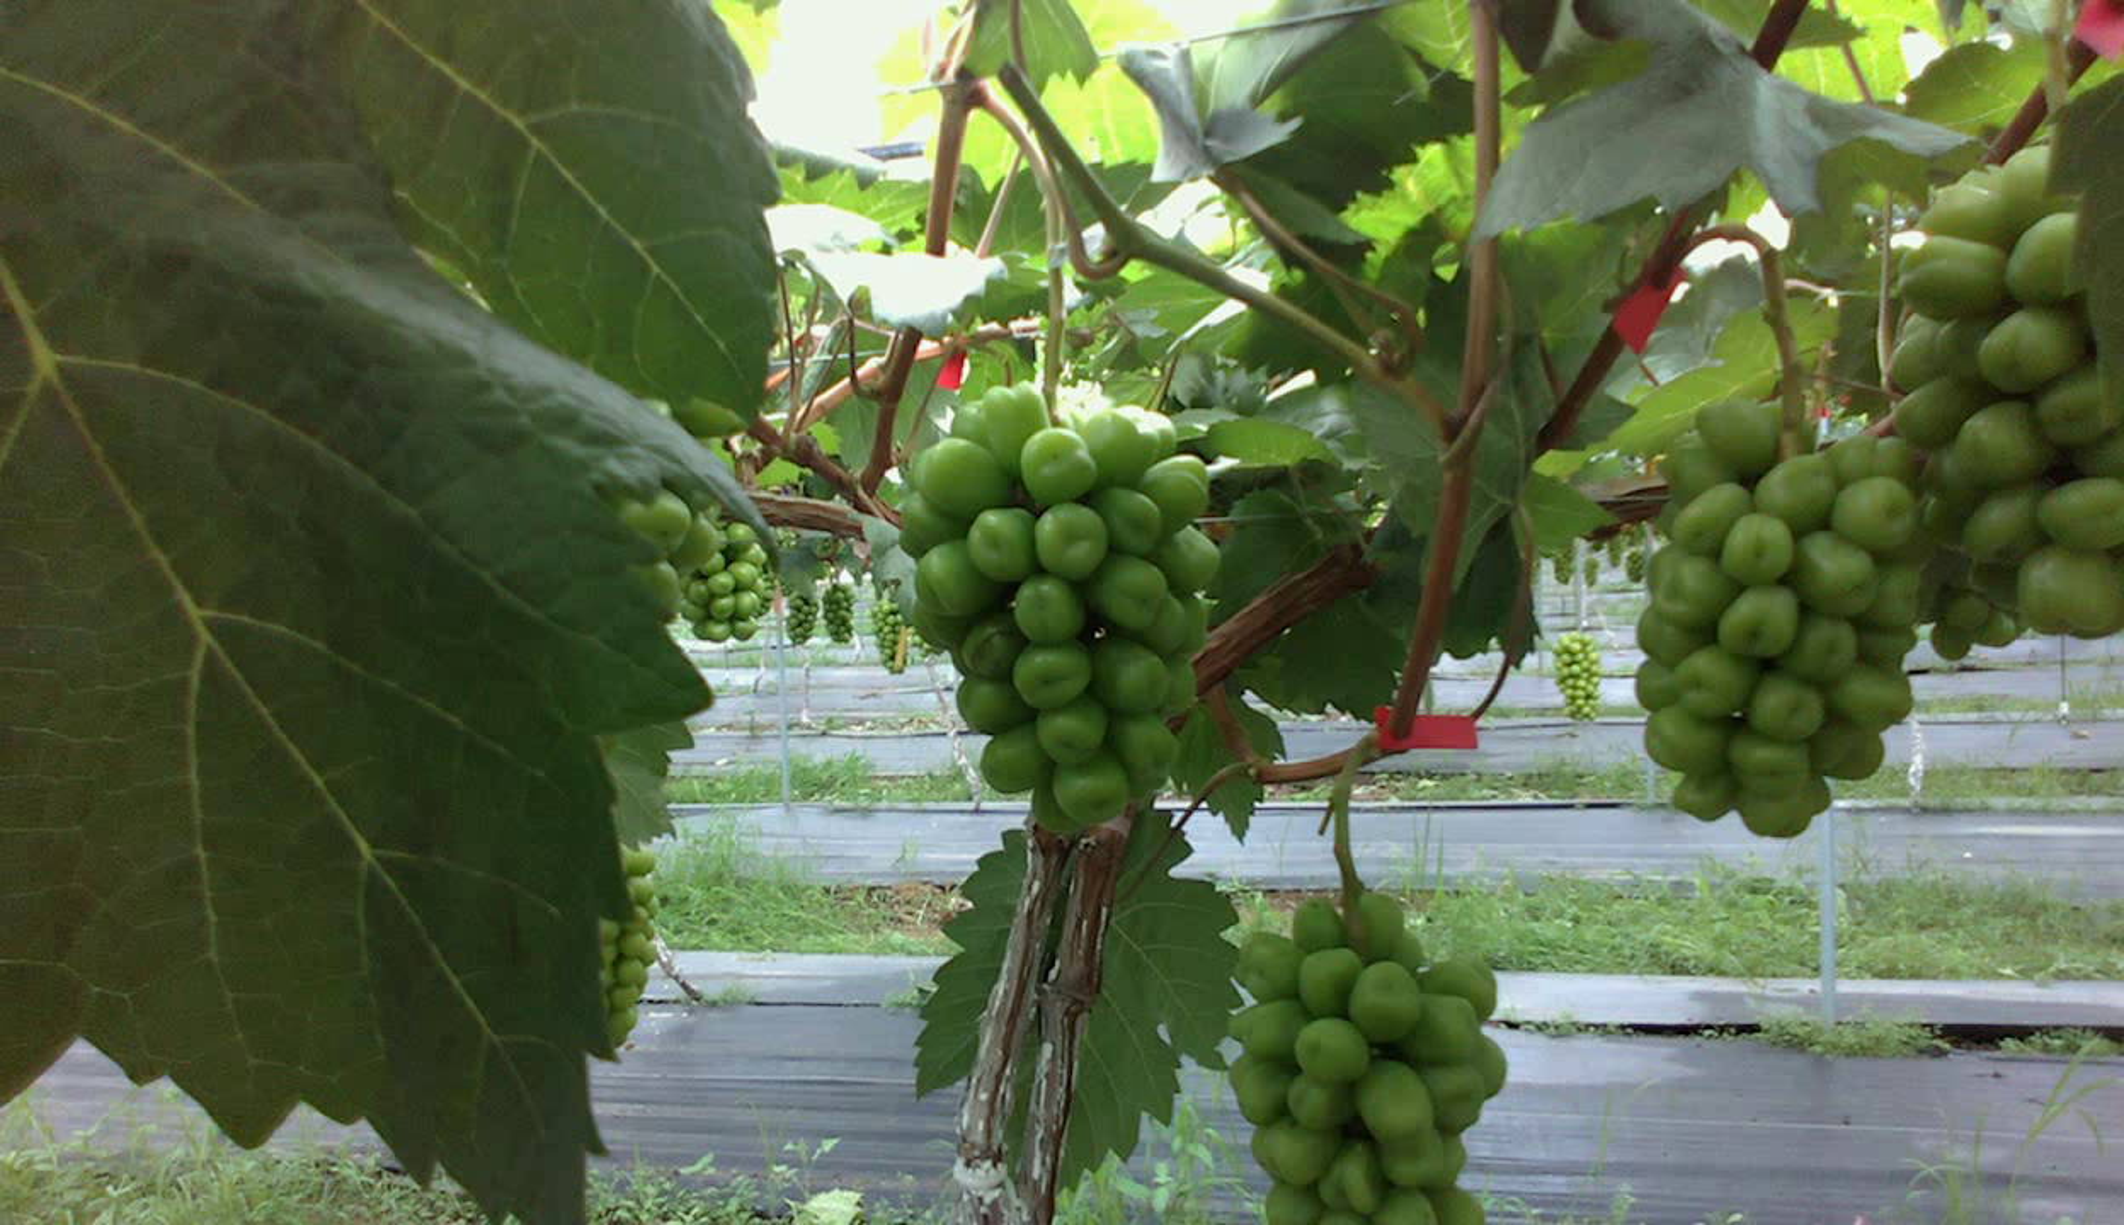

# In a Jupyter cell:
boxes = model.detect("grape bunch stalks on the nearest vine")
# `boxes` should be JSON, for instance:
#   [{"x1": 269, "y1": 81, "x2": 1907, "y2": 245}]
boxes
[
  {"x1": 987, "y1": 100, "x2": 1064, "y2": 424},
  {"x1": 1695, "y1": 221, "x2": 1807, "y2": 458},
  {"x1": 2044, "y1": 0, "x2": 2073, "y2": 109},
  {"x1": 1327, "y1": 735, "x2": 1372, "y2": 956}
]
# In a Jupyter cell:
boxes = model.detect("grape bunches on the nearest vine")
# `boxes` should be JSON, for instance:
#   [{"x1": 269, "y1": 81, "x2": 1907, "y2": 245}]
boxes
[
  {"x1": 1634, "y1": 395, "x2": 1937, "y2": 835},
  {"x1": 1230, "y1": 895, "x2": 1508, "y2": 1223},
  {"x1": 900, "y1": 381, "x2": 1217, "y2": 835},
  {"x1": 1889, "y1": 145, "x2": 2122, "y2": 640}
]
